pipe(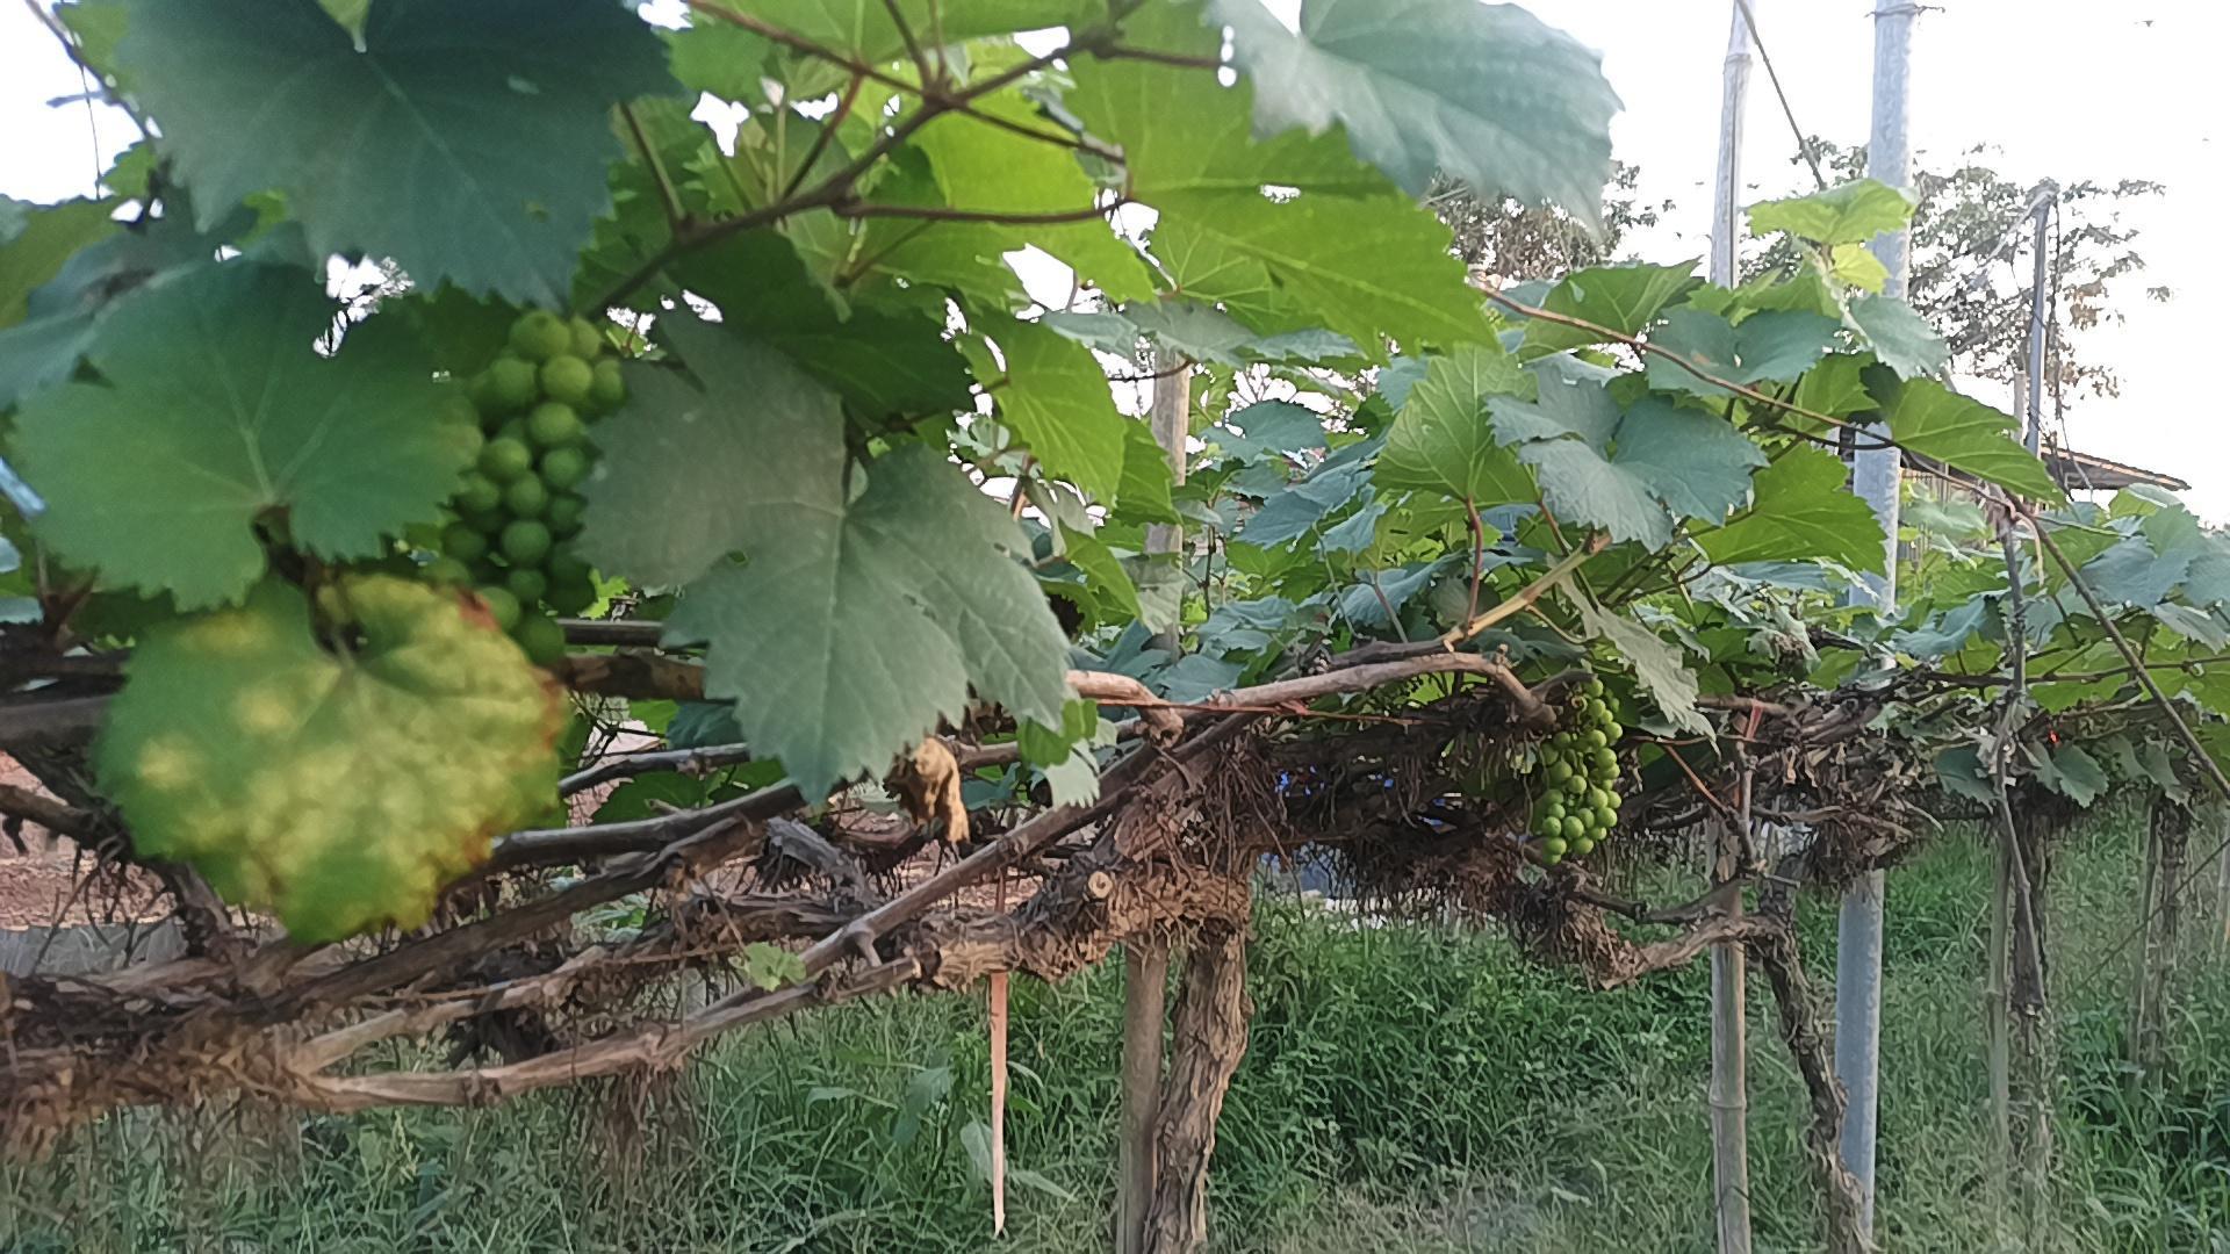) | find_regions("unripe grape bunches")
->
[1527,680,1624,864]
[436,310,625,666]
